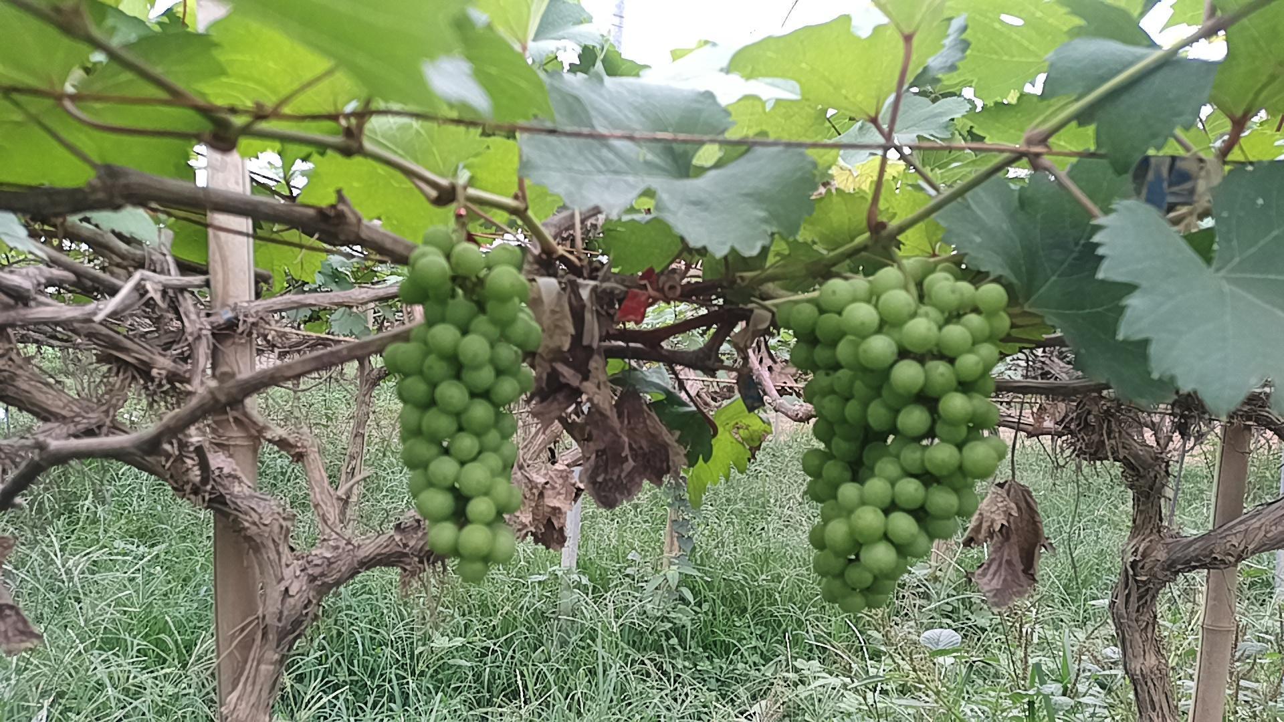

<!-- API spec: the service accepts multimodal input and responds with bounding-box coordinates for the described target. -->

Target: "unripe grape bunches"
[383,227,540,582]
[775,256,1009,612]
